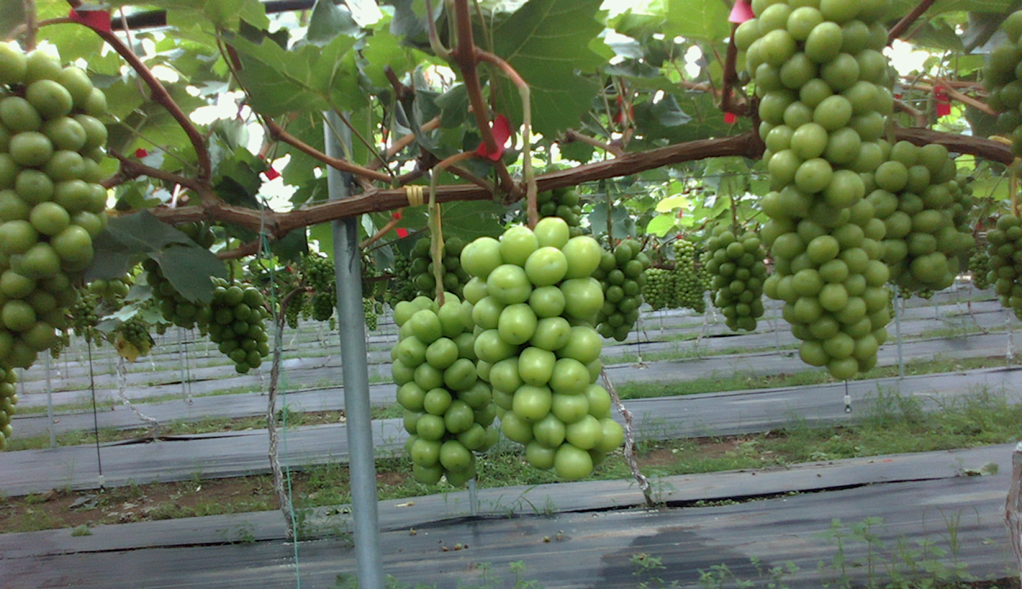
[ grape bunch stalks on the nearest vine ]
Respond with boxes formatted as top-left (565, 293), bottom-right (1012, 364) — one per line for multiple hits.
top-left (428, 150), bottom-right (475, 308)
top-left (888, 115), bottom-right (896, 143)
top-left (22, 1), bottom-right (36, 50)
top-left (482, 53), bottom-right (536, 231)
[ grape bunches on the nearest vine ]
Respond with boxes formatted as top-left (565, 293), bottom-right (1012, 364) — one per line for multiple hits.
top-left (760, 191), bottom-right (892, 379)
top-left (735, 1), bottom-right (893, 227)
top-left (457, 217), bottom-right (623, 478)
top-left (0, 41), bottom-right (109, 370)
top-left (862, 141), bottom-right (974, 292)
top-left (389, 292), bottom-right (497, 486)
